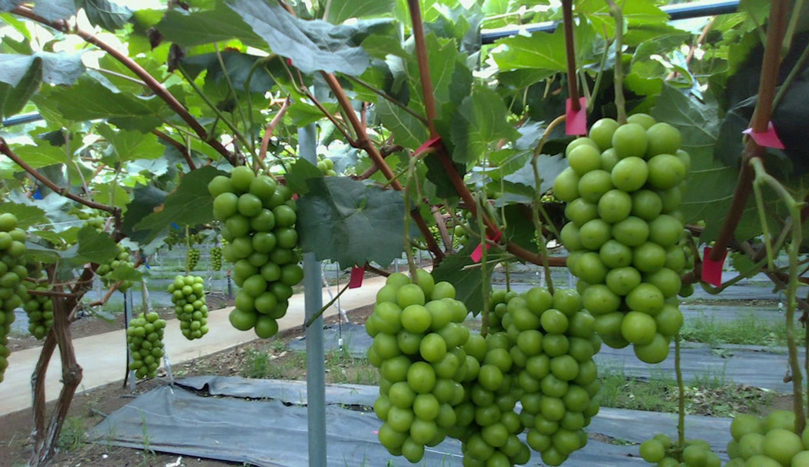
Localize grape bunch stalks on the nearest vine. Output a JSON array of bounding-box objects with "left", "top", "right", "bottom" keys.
[
  {"left": 604, "top": 1, "right": 628, "bottom": 126},
  {"left": 674, "top": 332, "right": 685, "bottom": 462},
  {"left": 749, "top": 156, "right": 806, "bottom": 438},
  {"left": 403, "top": 147, "right": 436, "bottom": 286},
  {"left": 475, "top": 193, "right": 489, "bottom": 339},
  {"left": 243, "top": 53, "right": 276, "bottom": 178},
  {"left": 530, "top": 114, "right": 565, "bottom": 296}
]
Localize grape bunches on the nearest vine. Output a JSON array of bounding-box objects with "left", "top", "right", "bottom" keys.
[
  {"left": 726, "top": 411, "right": 808, "bottom": 466},
  {"left": 0, "top": 213, "right": 28, "bottom": 379},
  {"left": 502, "top": 286, "right": 602, "bottom": 466},
  {"left": 553, "top": 114, "right": 690, "bottom": 364},
  {"left": 639, "top": 434, "right": 720, "bottom": 466},
  {"left": 207, "top": 165, "right": 304, "bottom": 339},
  {"left": 364, "top": 269, "right": 470, "bottom": 463},
  {"left": 446, "top": 332, "right": 532, "bottom": 466}
]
